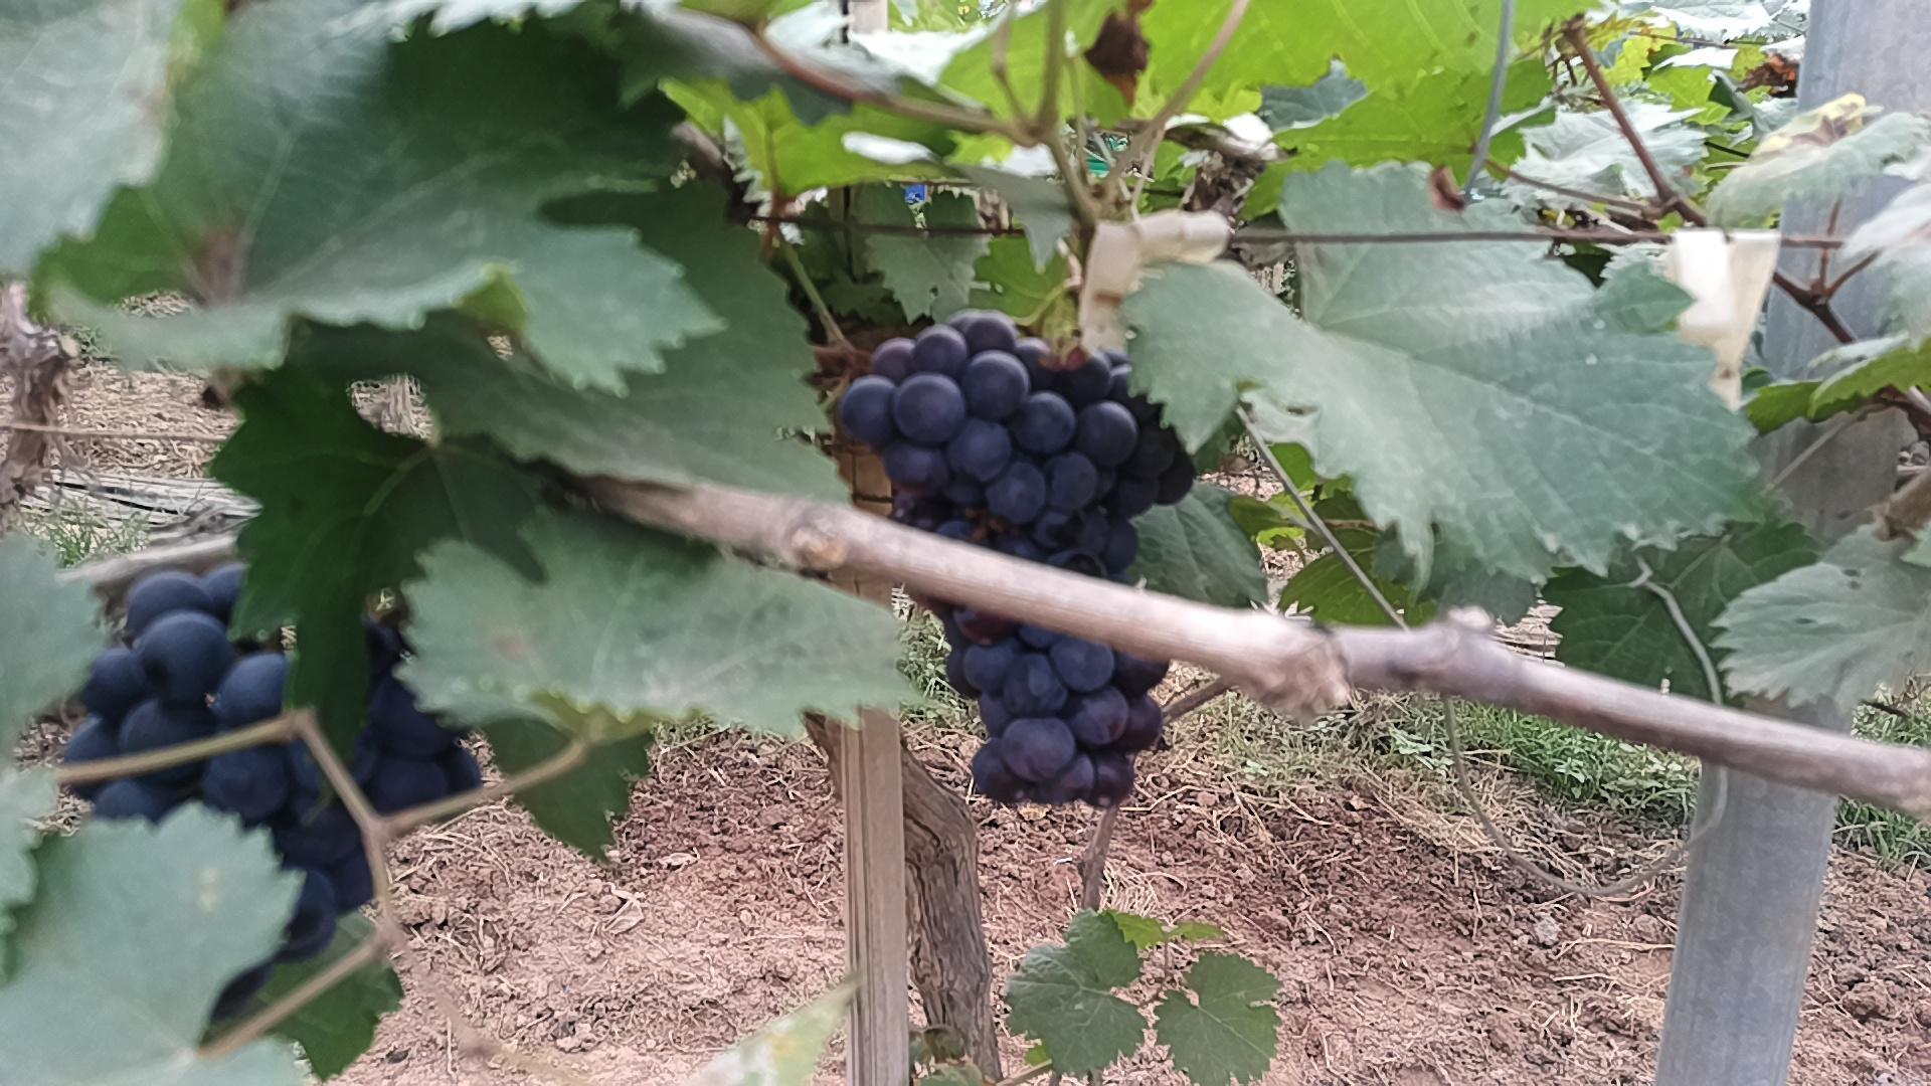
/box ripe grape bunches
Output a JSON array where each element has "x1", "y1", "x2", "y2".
[
  {"x1": 61, "y1": 563, "x2": 484, "y2": 1021},
  {"x1": 838, "y1": 308, "x2": 1197, "y2": 806}
]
